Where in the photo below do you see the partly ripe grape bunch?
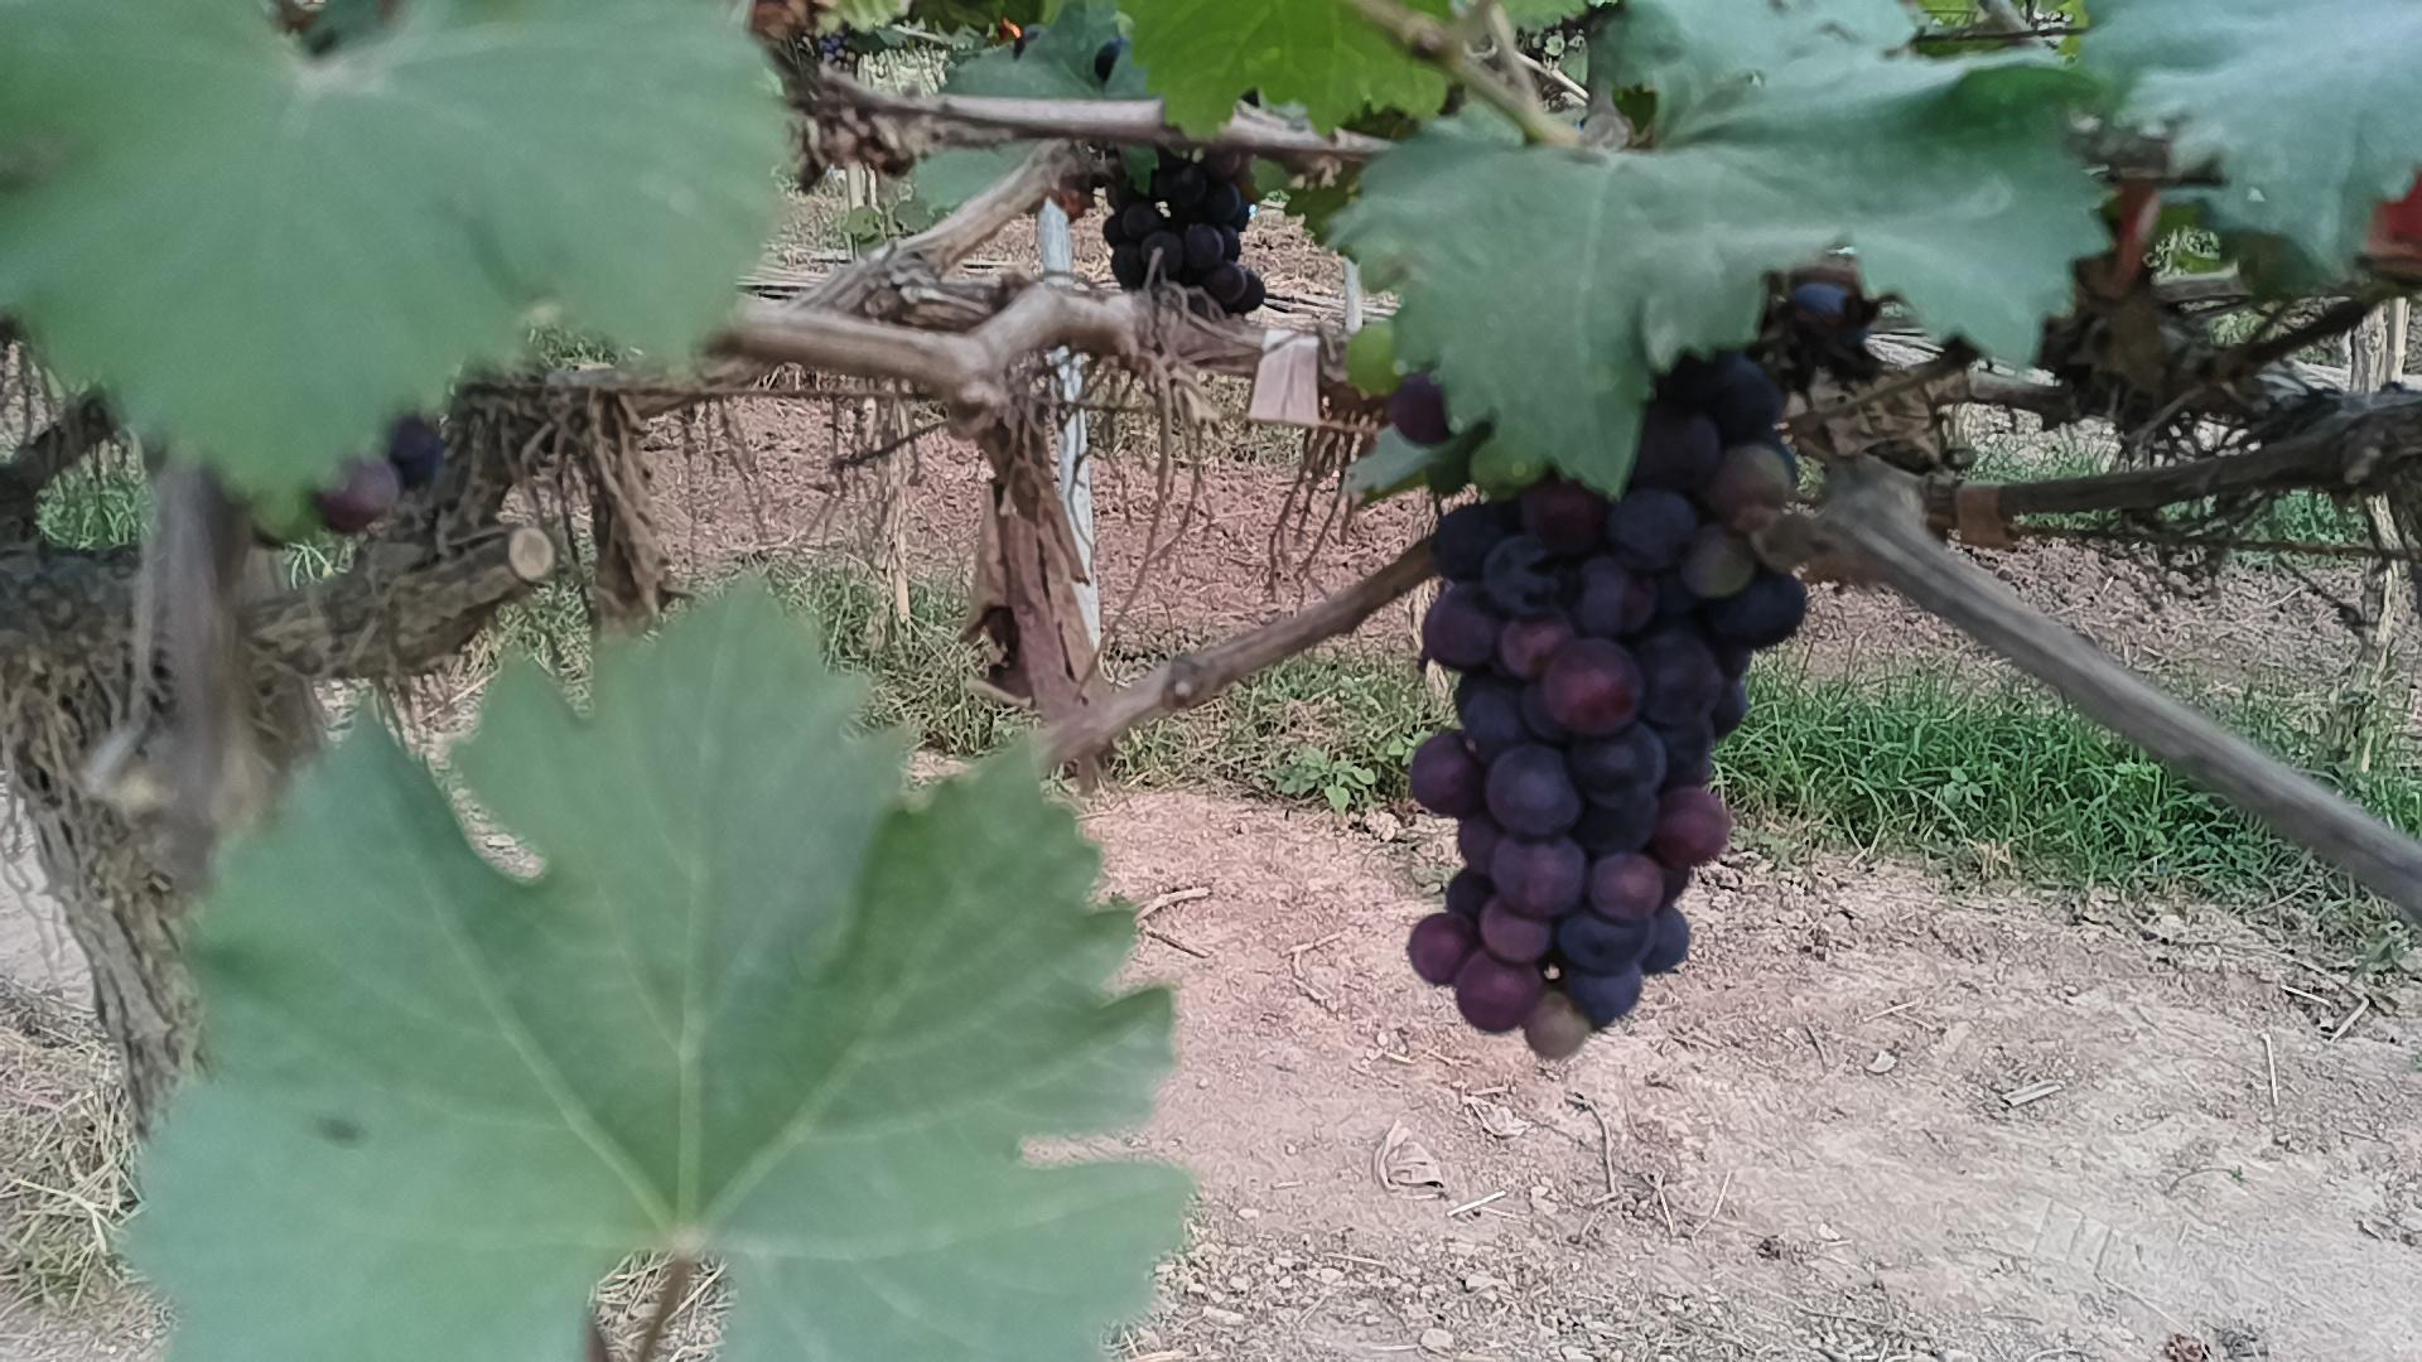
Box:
[1408,352,1805,1057]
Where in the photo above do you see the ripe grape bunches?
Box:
[1101,150,1269,314]
[303,414,445,535]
